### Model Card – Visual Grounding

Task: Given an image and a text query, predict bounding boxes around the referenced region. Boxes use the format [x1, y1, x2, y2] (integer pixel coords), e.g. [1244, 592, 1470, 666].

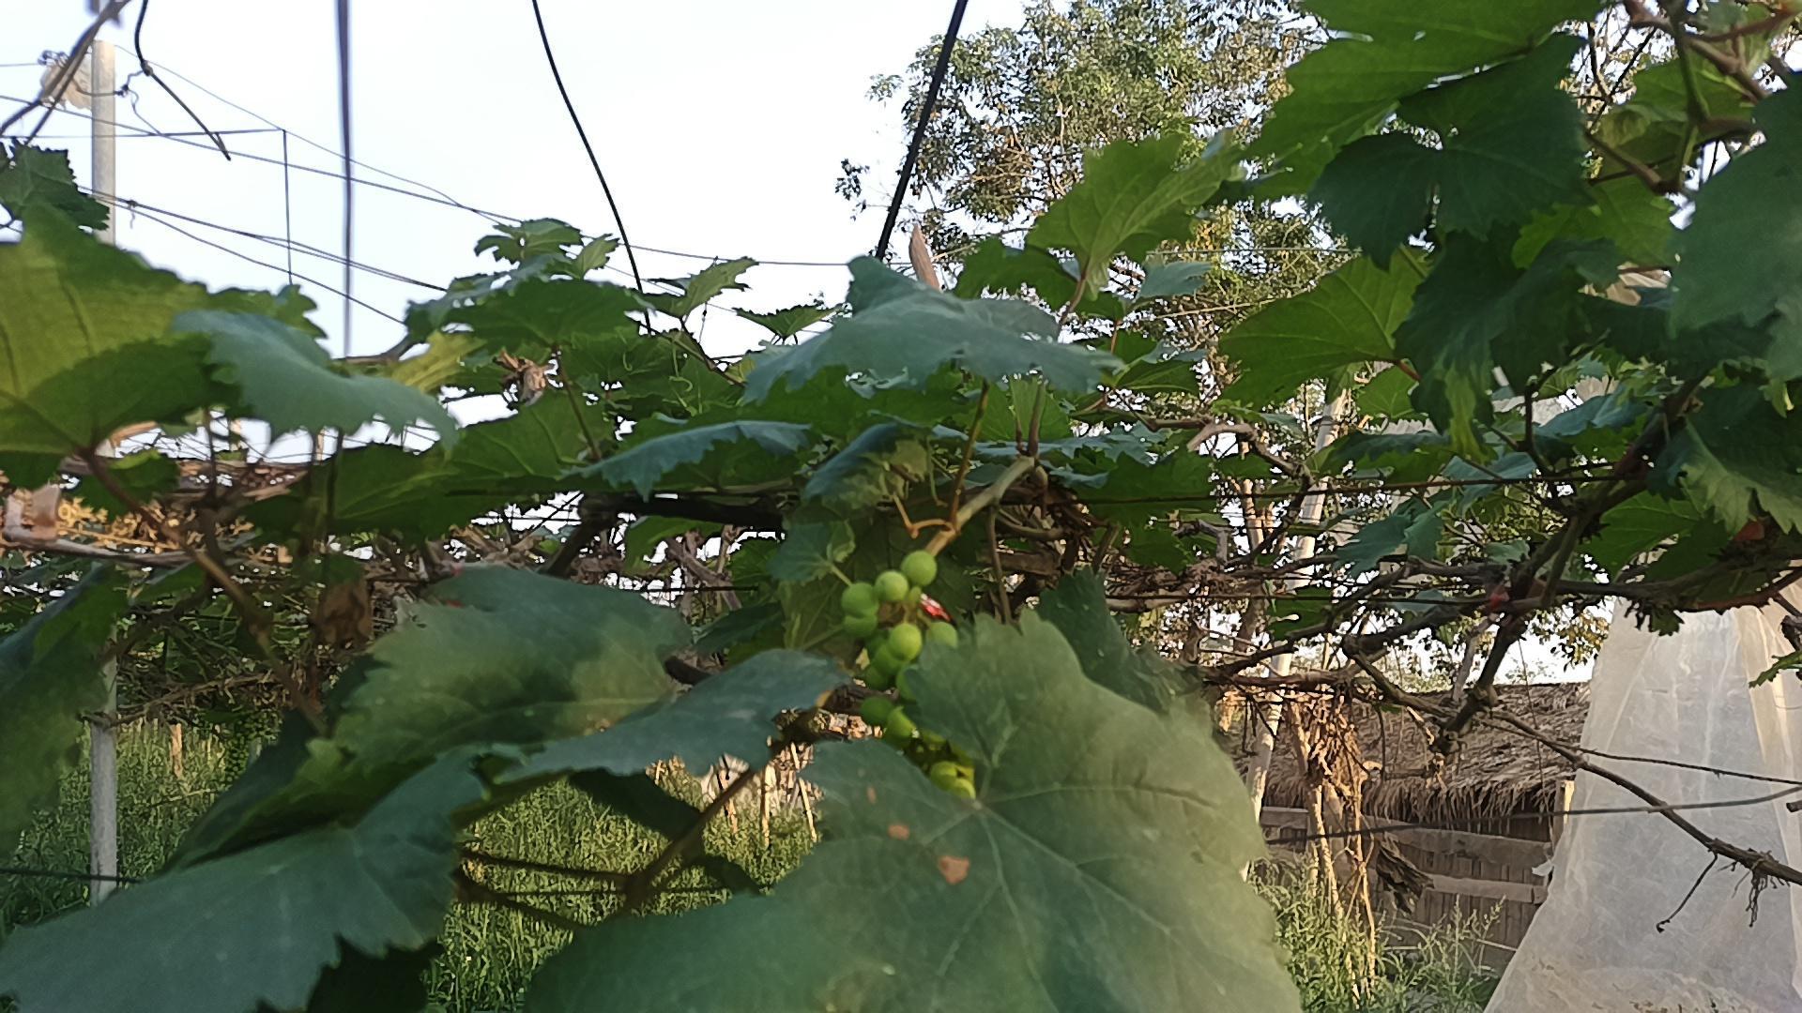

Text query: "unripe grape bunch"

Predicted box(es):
[842, 551, 974, 795]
